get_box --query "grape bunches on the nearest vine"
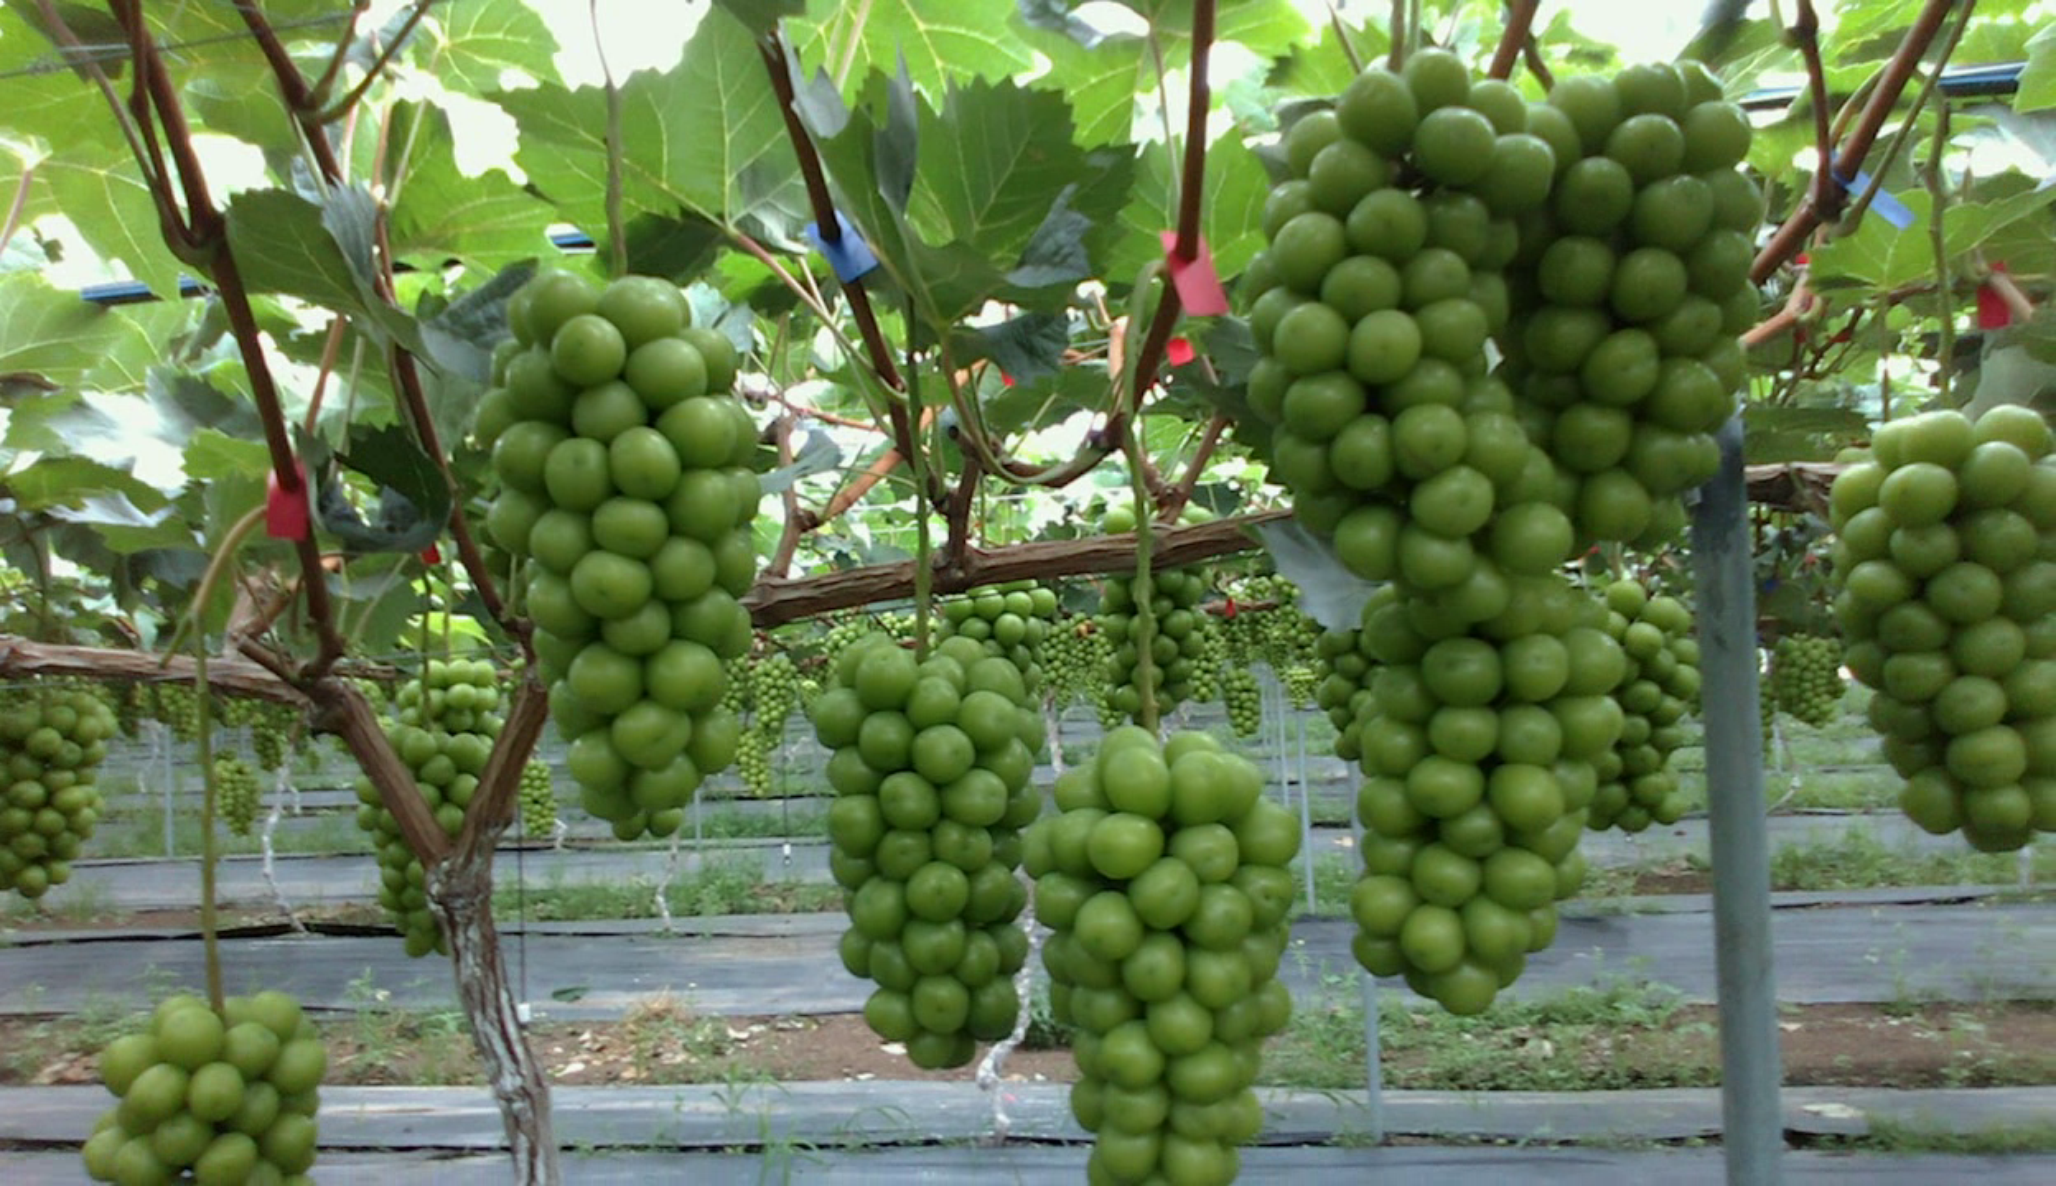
[470,270,761,842]
[1023,725,1301,1184]
[1244,44,1582,624]
[1486,61,1764,550]
[1344,575,1626,1016]
[1829,404,2054,853]
[811,628,1044,1071]
[79,990,326,1184]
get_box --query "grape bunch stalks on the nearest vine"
[605,81,626,282]
[1387,0,1405,74]
[1122,259,1170,743]
[189,506,265,1028]
[903,293,929,664]
[1923,86,1956,407]
[1524,26,1557,94]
